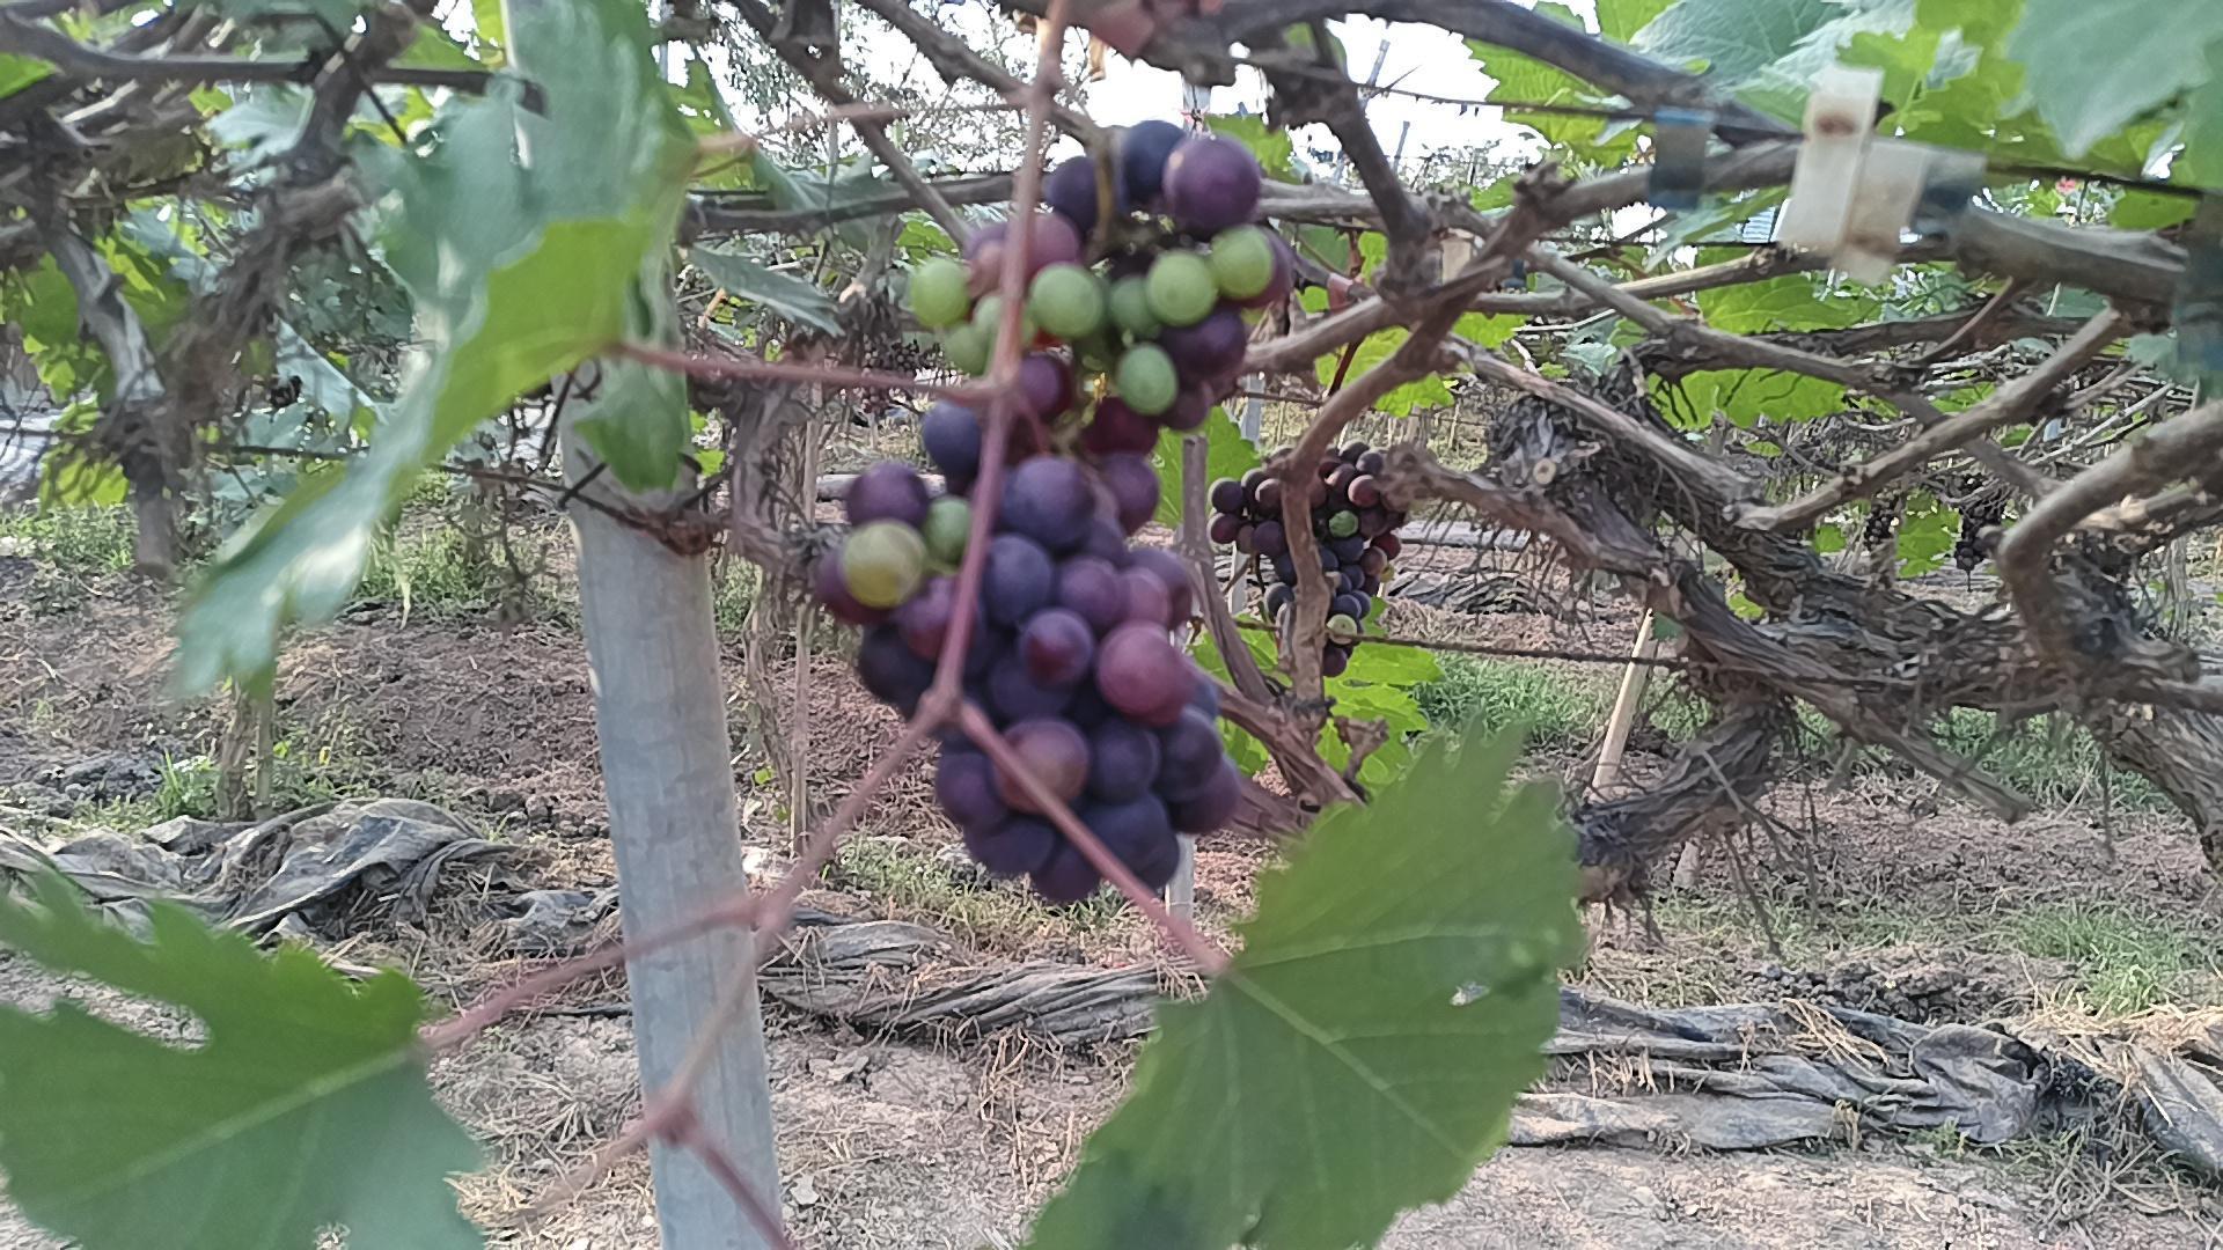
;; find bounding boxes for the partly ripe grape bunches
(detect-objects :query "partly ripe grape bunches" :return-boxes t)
[1210,441,1407,678]
[810,116,1299,903]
